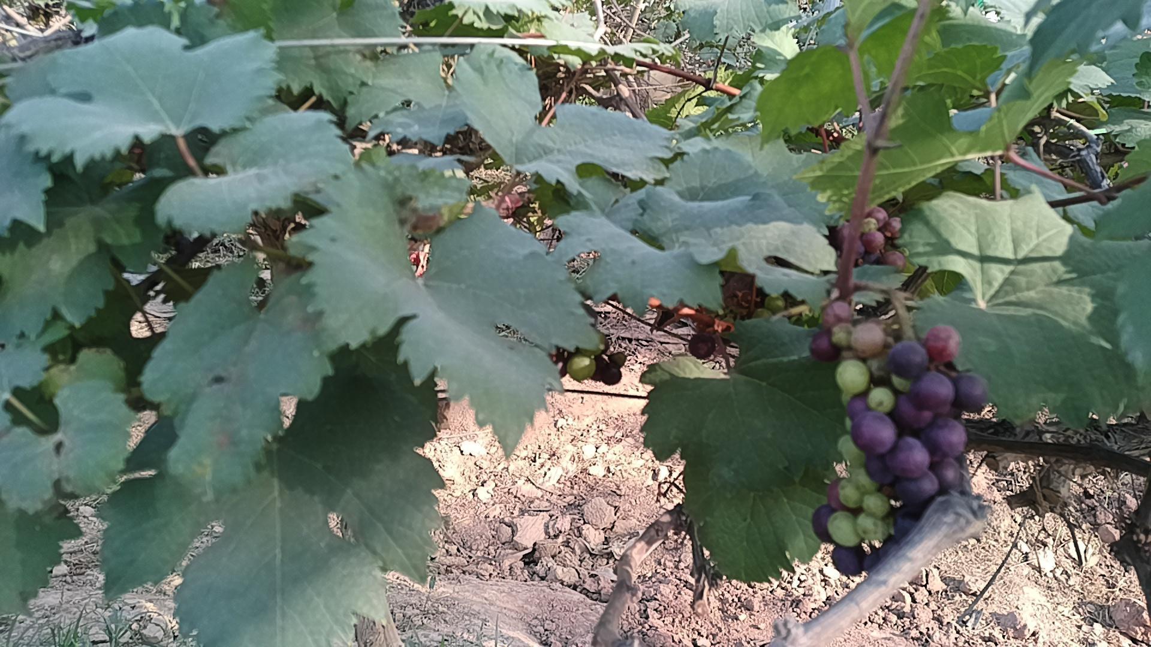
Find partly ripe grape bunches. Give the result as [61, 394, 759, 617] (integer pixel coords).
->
[559, 326, 626, 385]
[854, 207, 908, 271]
[810, 289, 987, 574]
